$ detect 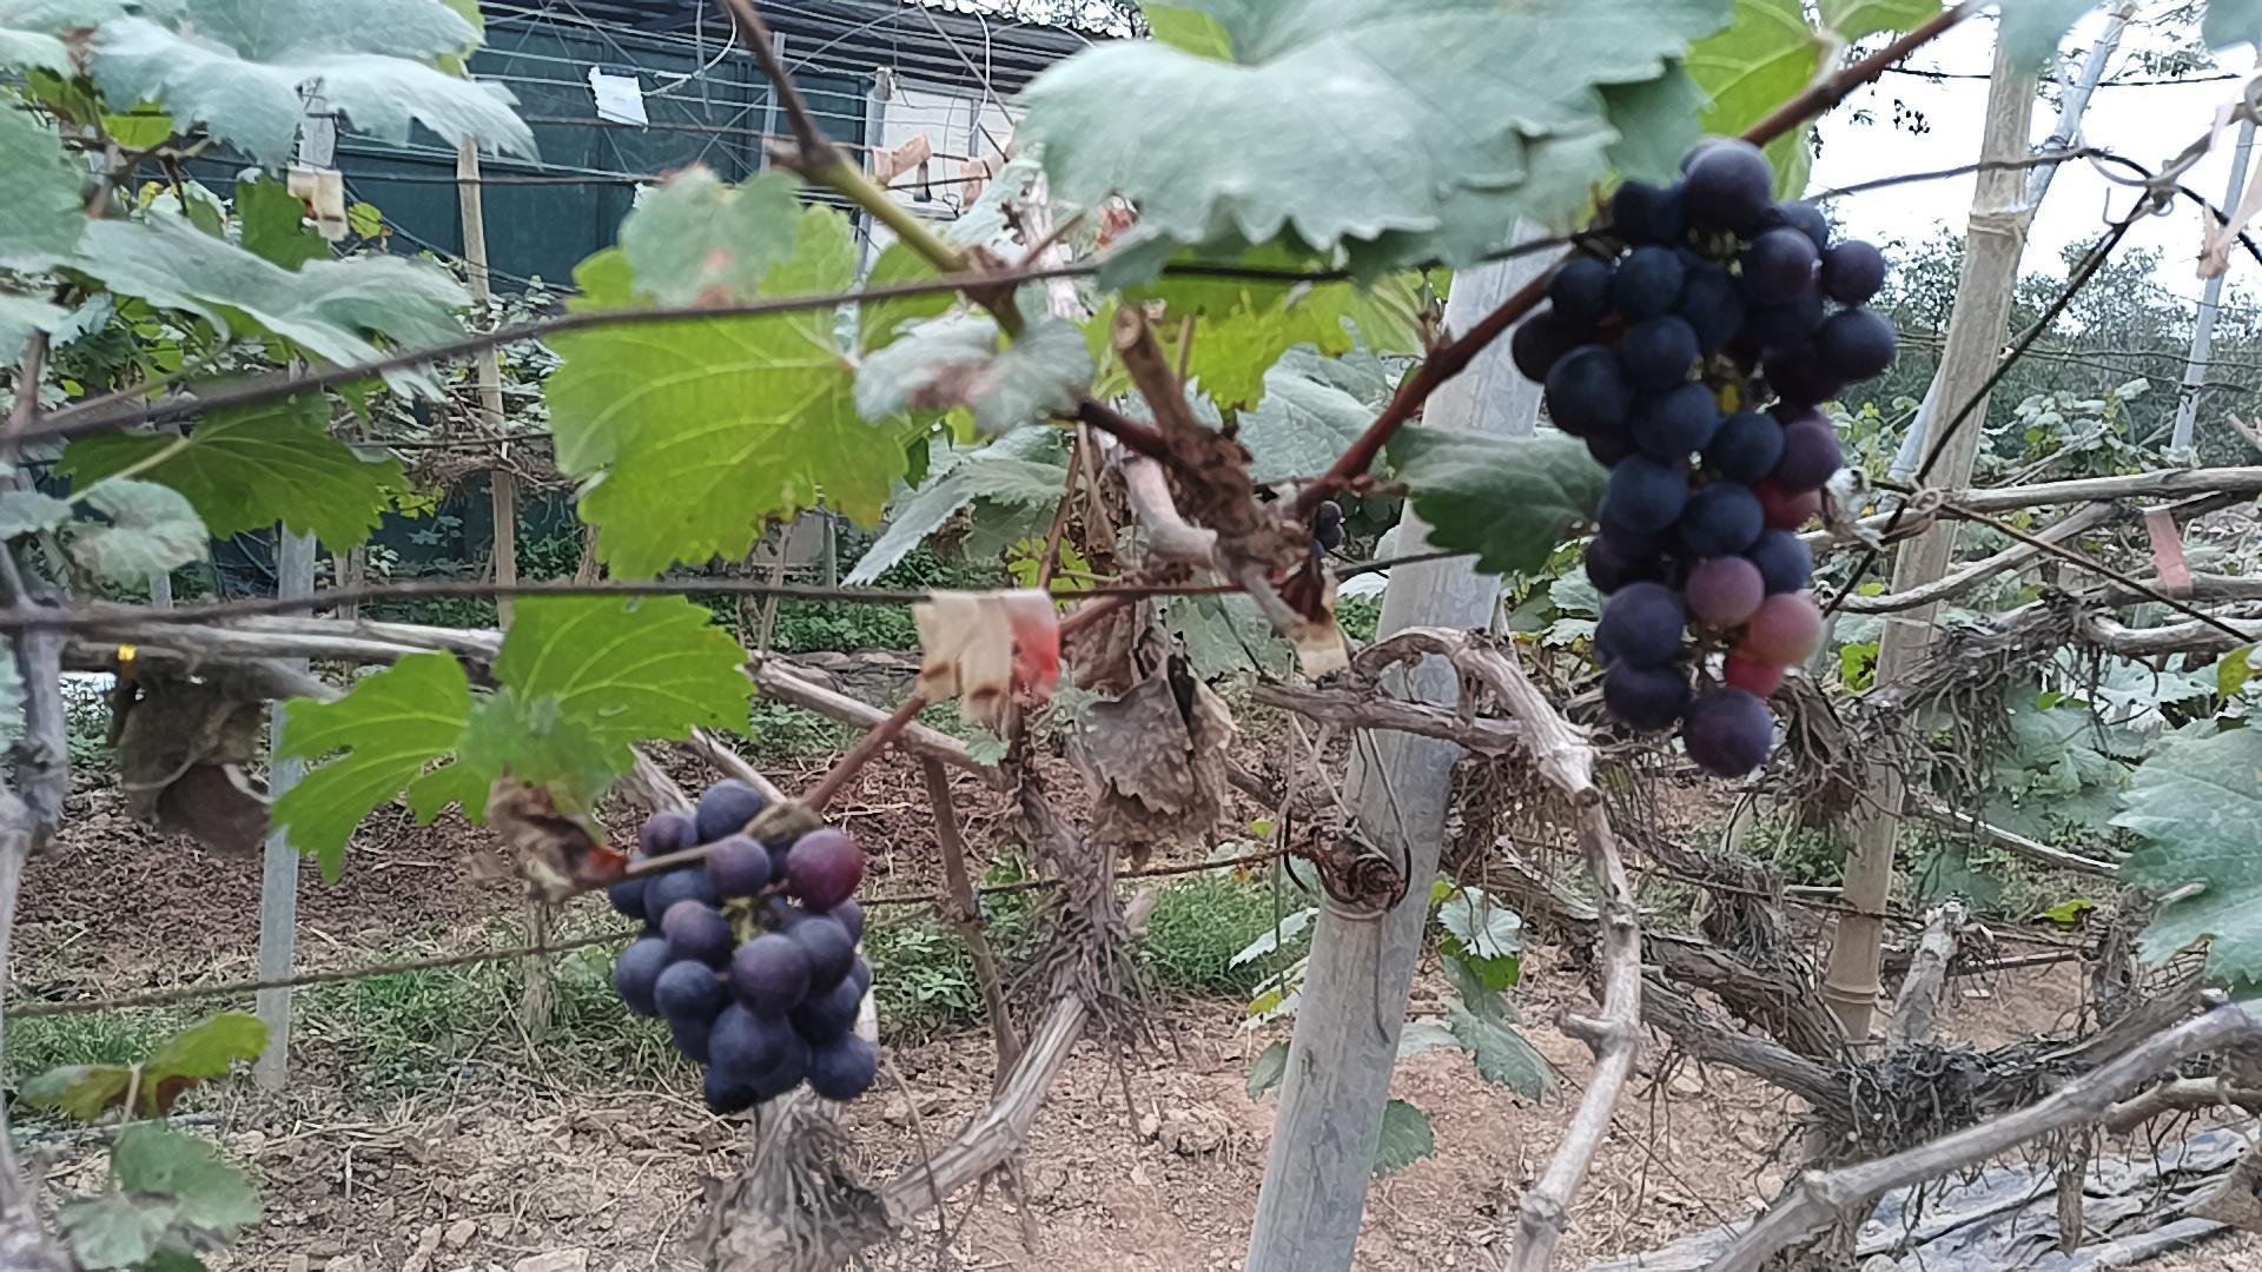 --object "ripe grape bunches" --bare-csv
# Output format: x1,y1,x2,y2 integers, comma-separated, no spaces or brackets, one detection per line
1514,140,1894,775
1308,499,1349,562
608,780,878,1112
